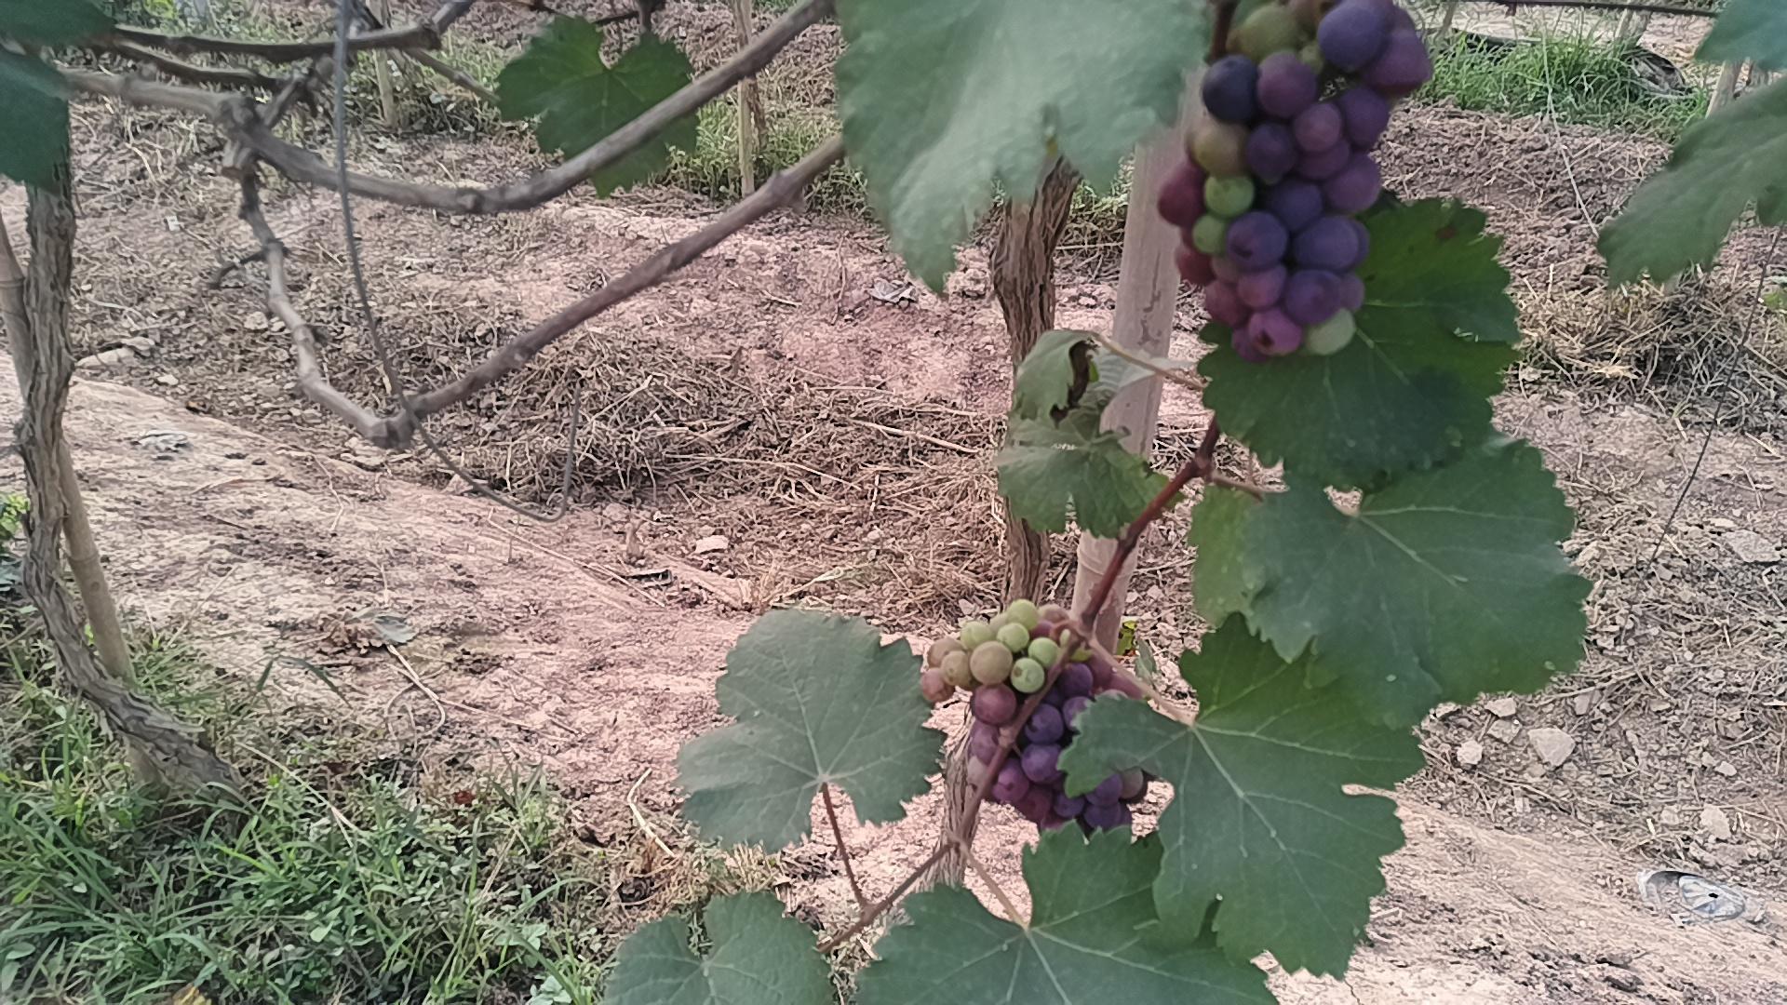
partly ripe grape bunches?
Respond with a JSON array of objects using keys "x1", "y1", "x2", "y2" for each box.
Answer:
[
  {"x1": 1158, "y1": 0, "x2": 1433, "y2": 363},
  {"x1": 921, "y1": 600, "x2": 1146, "y2": 833}
]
